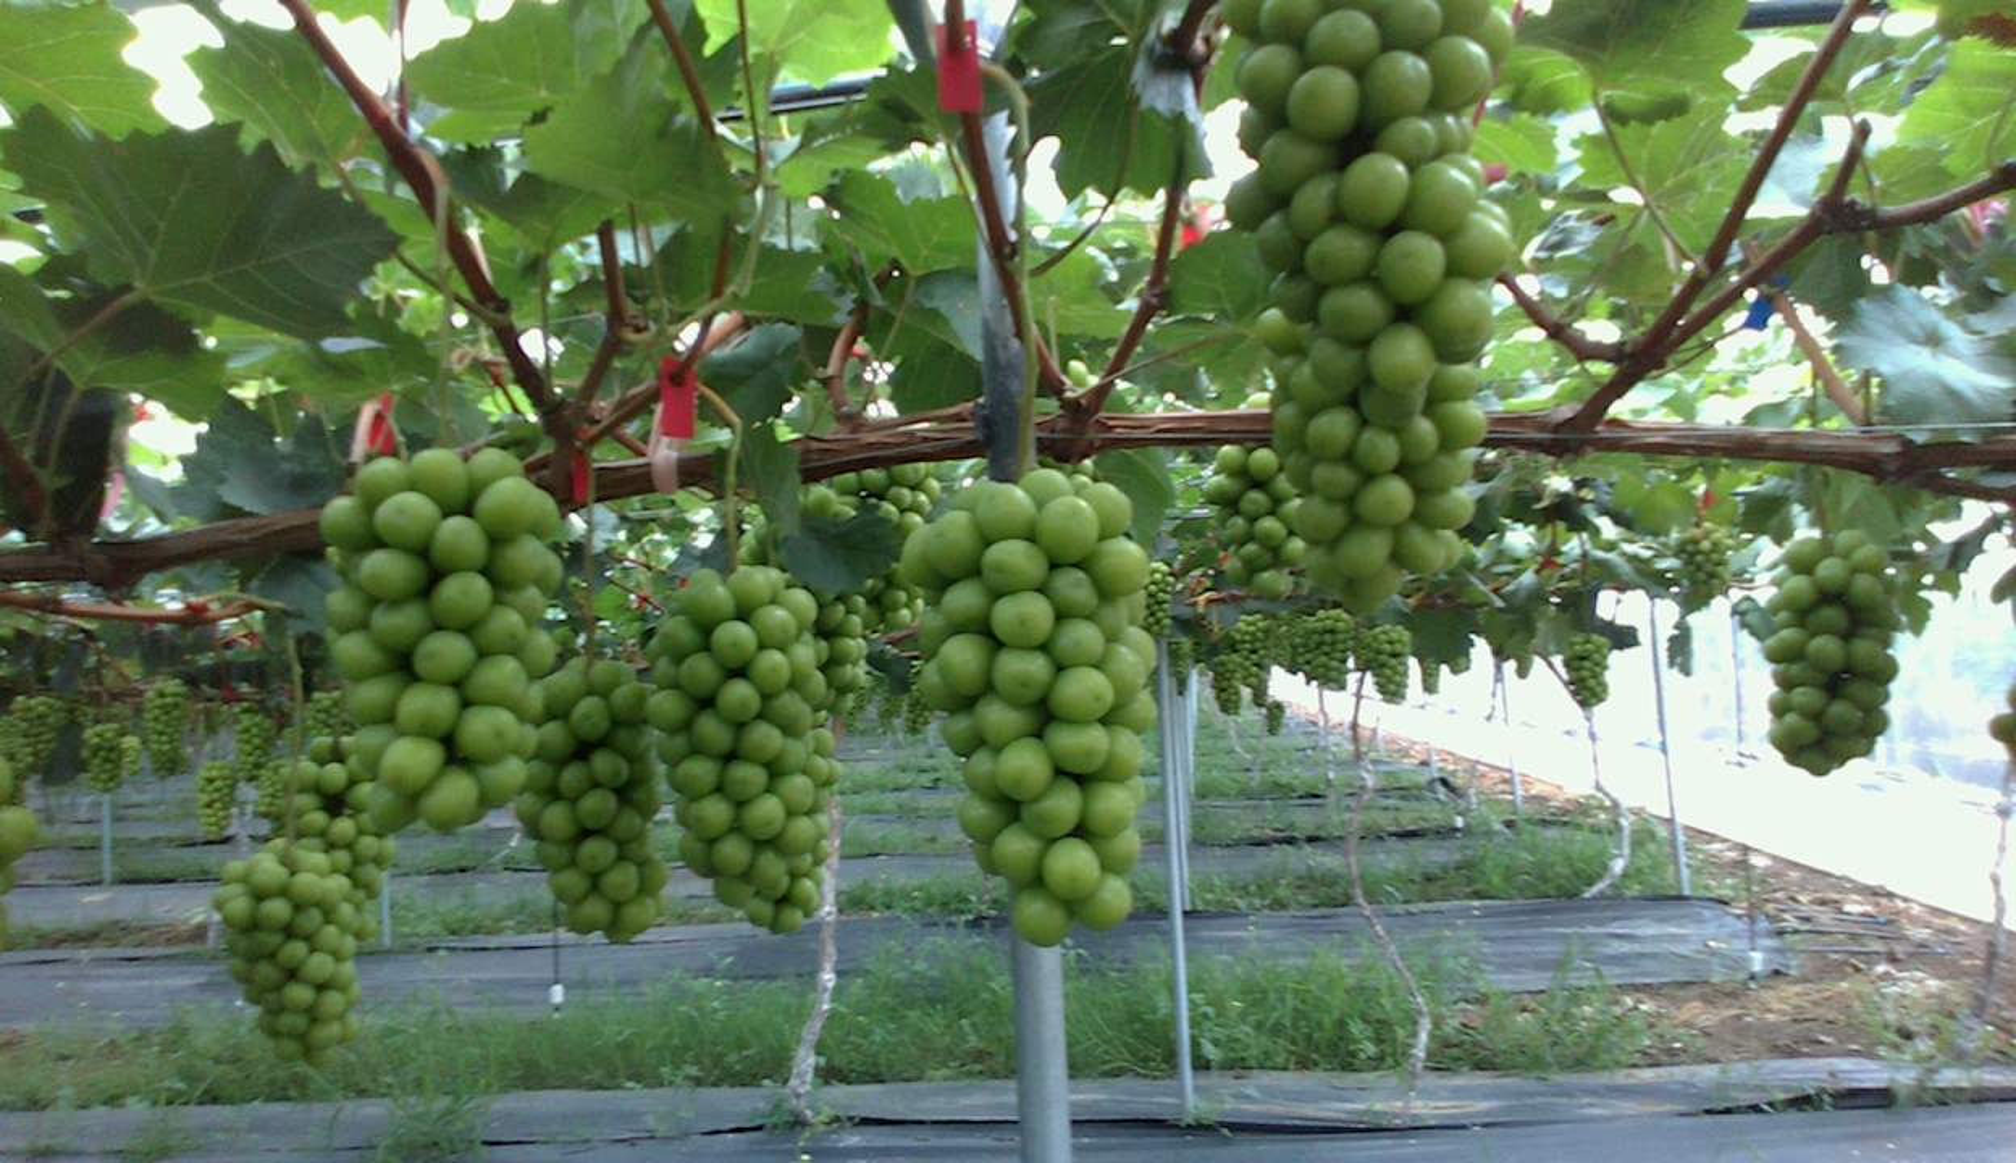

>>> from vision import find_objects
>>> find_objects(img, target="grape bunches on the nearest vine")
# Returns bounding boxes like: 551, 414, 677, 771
645, 567, 843, 935
517, 653, 669, 942
1218, 0, 1517, 425
318, 446, 561, 832
901, 468, 1157, 947
1260, 305, 1488, 617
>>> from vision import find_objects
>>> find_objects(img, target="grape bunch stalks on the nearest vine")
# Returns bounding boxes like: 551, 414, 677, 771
585, 451, 594, 664
974, 61, 1037, 475
410, 145, 452, 447
696, 376, 743, 570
